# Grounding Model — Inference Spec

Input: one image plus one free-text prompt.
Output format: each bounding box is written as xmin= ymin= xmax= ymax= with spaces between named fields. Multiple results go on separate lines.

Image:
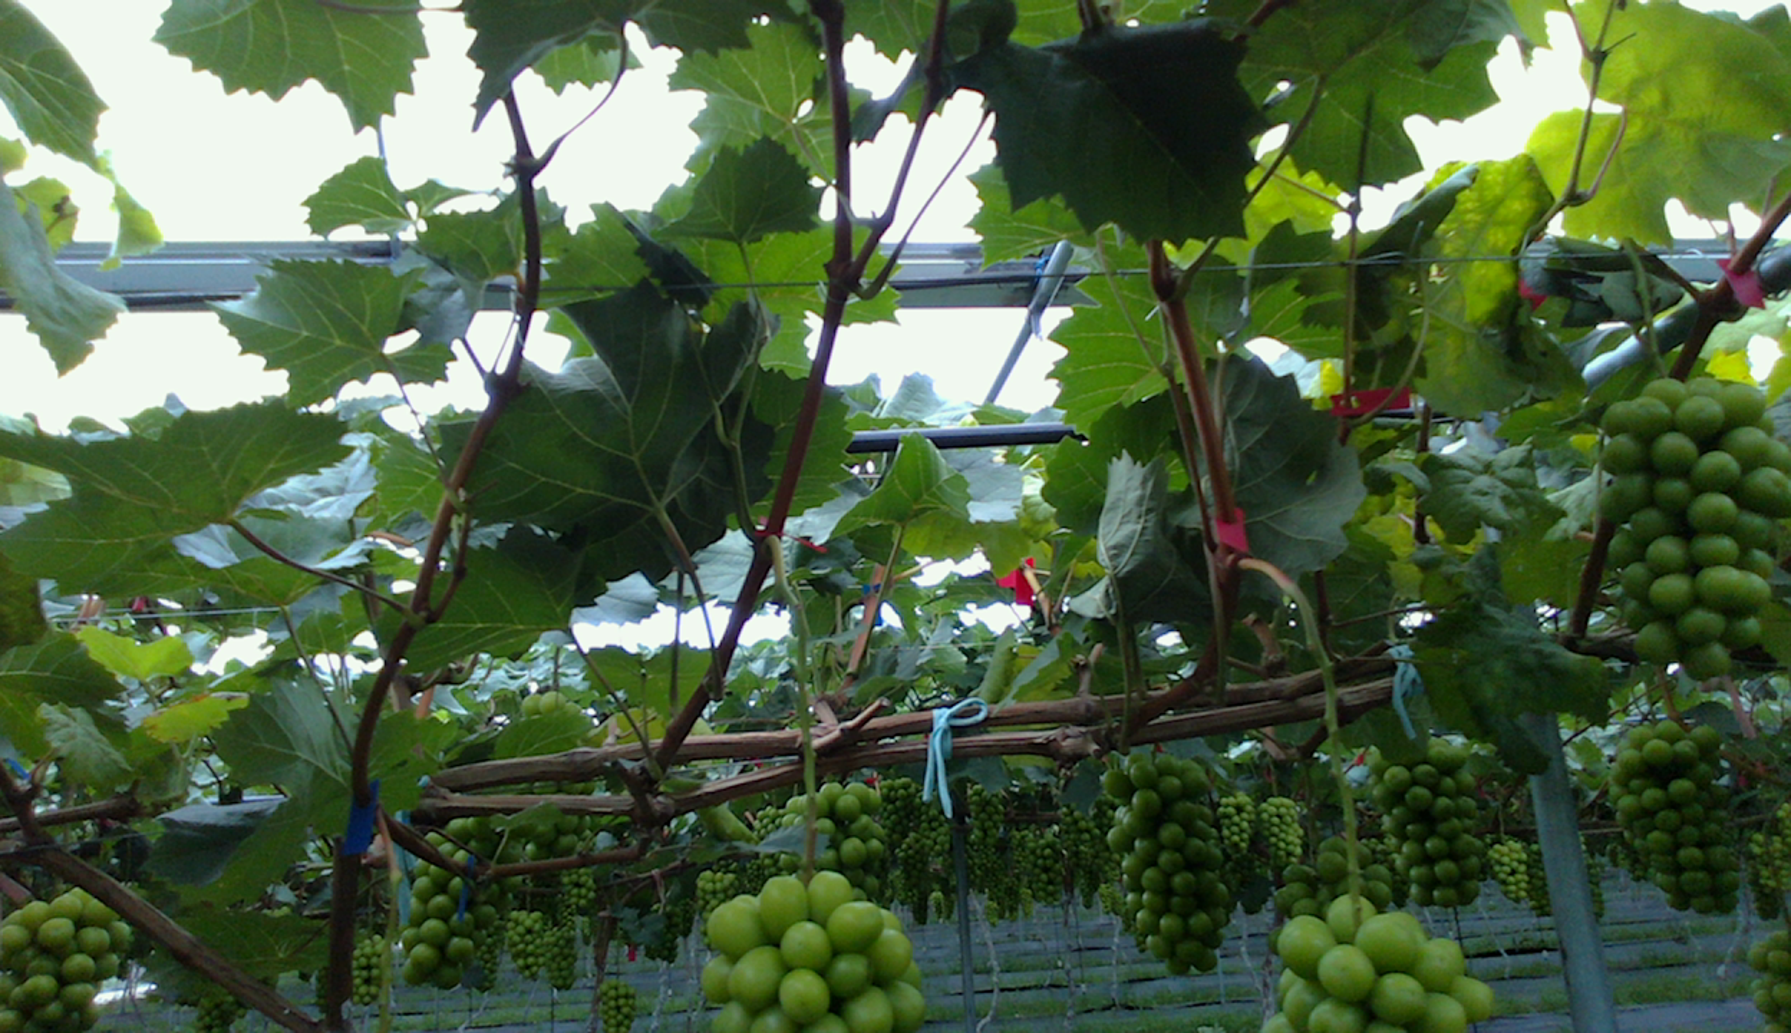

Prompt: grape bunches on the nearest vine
xmin=1261 ymin=894 xmax=1494 ymax=1032
xmin=1597 ymin=377 xmax=1788 ymax=680
xmin=699 ymin=871 xmax=926 ymax=1032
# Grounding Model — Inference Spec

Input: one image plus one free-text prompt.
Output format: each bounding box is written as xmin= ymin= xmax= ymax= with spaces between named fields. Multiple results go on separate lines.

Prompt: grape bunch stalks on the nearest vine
xmin=376 ymin=811 xmax=400 ymax=1022
xmin=1238 ymin=558 xmax=1362 ymax=935
xmin=1622 ymin=235 xmax=1669 ymax=377
xmin=771 ymin=537 xmax=817 ymax=888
